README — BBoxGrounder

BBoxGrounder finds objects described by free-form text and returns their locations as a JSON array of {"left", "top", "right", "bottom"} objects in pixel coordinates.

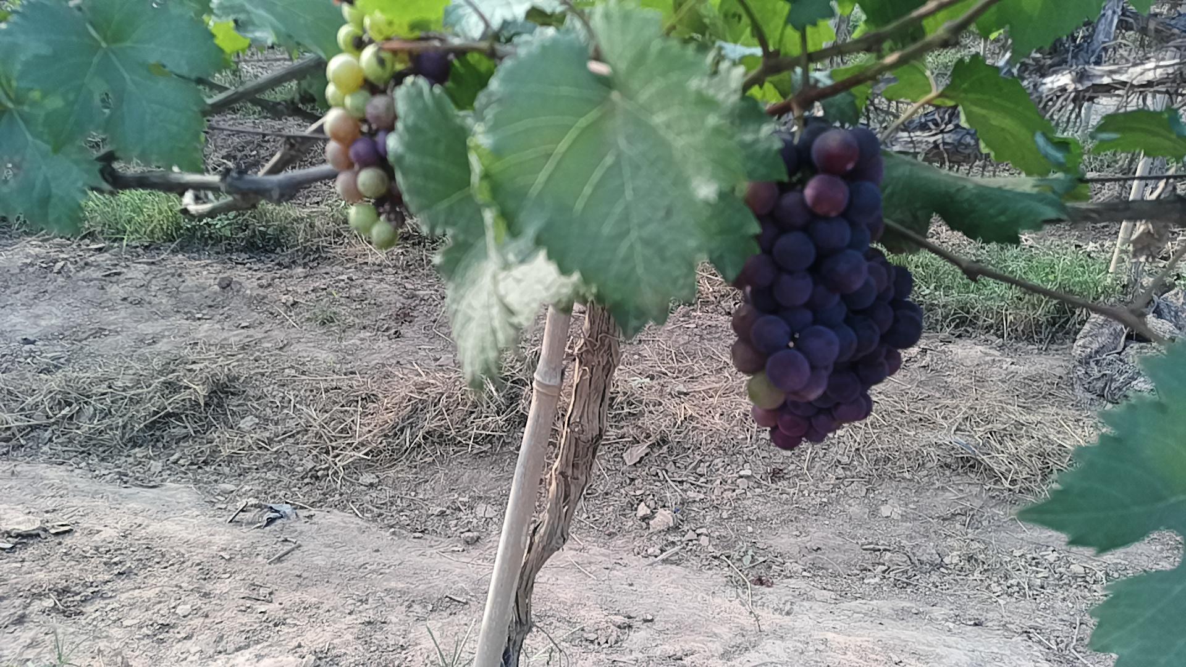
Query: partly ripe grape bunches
[
  {"left": 324, "top": 0, "right": 453, "bottom": 249},
  {"left": 732, "top": 116, "right": 923, "bottom": 450}
]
